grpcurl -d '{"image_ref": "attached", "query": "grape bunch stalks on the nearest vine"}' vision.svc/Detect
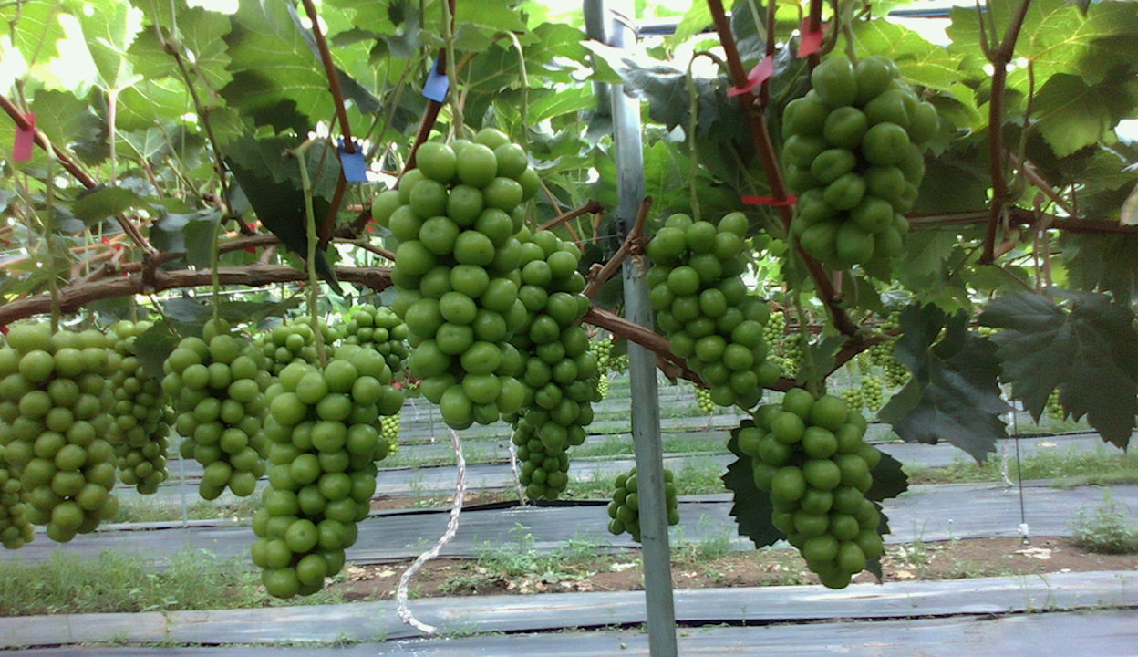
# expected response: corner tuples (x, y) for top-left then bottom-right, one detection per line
(841, 13), (859, 63)
(212, 211), (228, 335)
(35, 127), (59, 337)
(686, 50), (729, 220)
(786, 209), (817, 398)
(440, 2), (463, 140)
(295, 134), (342, 368)
(493, 29), (542, 235)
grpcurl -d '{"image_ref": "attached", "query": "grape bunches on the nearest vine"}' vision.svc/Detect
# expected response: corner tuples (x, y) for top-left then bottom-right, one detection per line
(647, 212), (781, 410)
(5, 324), (119, 544)
(737, 387), (883, 589)
(781, 54), (939, 270)
(251, 345), (403, 598)
(513, 226), (595, 454)
(371, 127), (540, 428)
(162, 318), (274, 500)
